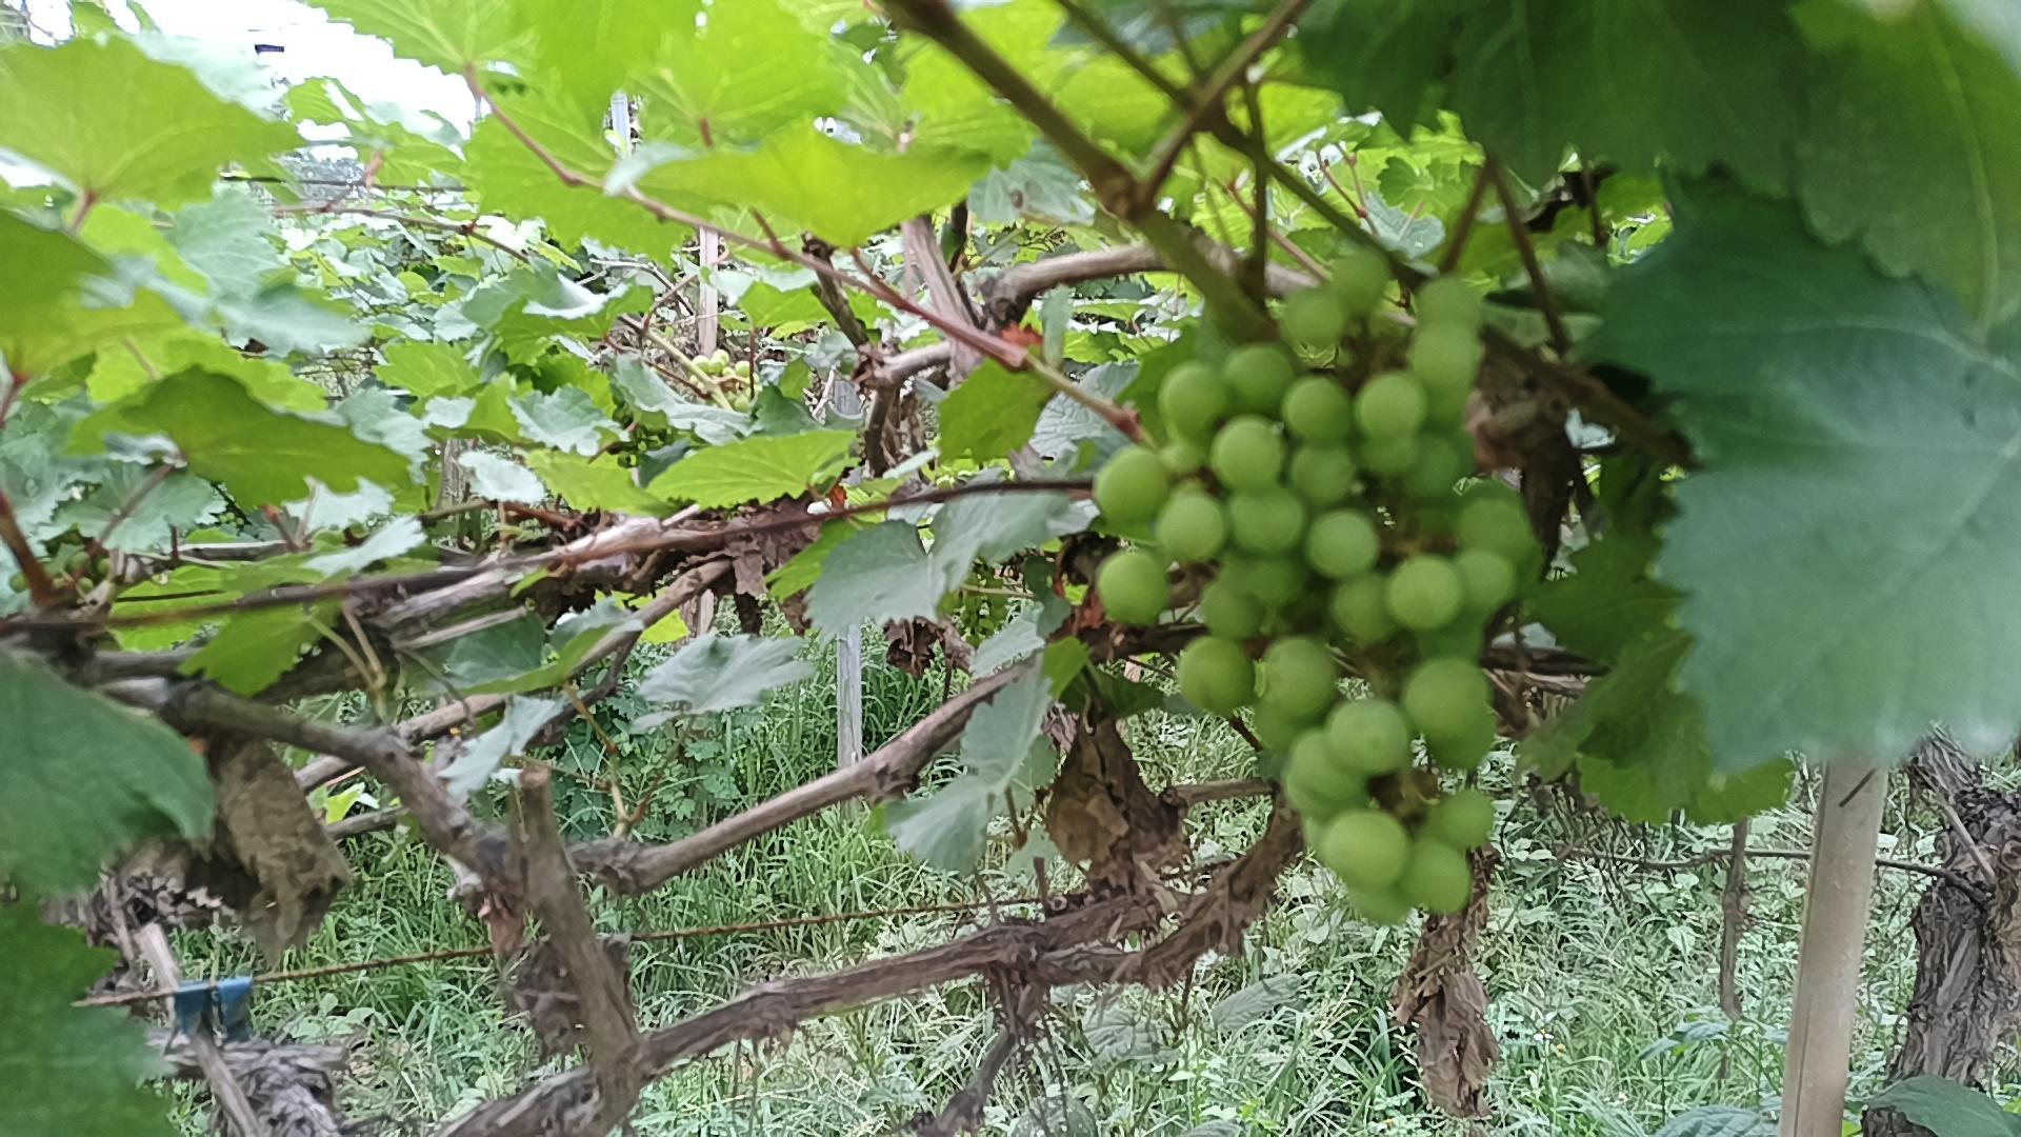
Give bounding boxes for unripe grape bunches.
[682,350,753,411]
[1092,248,1539,922]
[942,562,1014,647]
